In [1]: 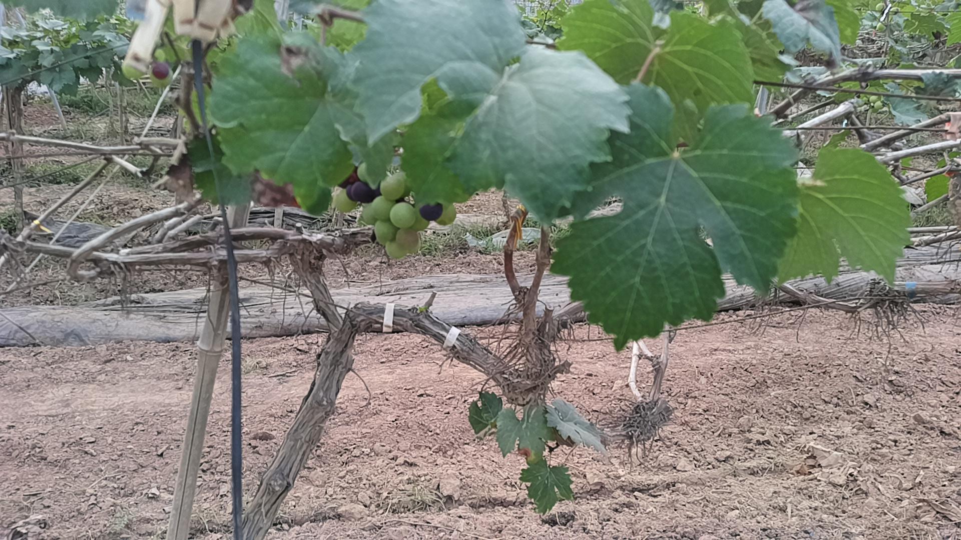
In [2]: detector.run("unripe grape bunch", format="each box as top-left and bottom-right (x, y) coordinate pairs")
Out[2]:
(332, 170), (455, 258)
